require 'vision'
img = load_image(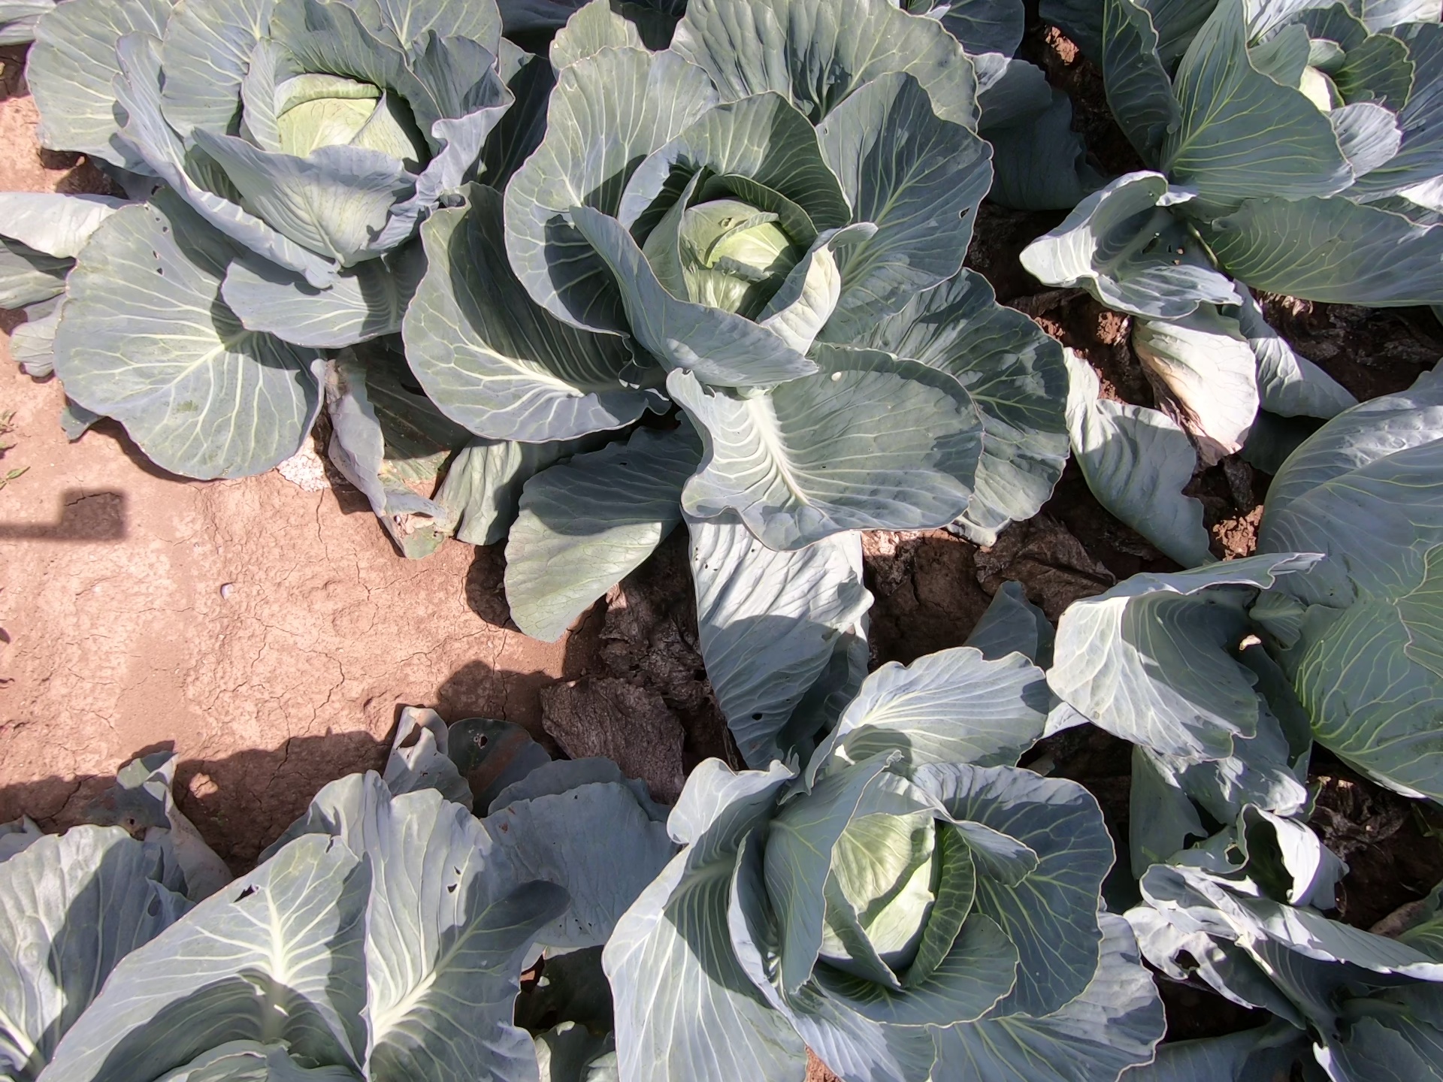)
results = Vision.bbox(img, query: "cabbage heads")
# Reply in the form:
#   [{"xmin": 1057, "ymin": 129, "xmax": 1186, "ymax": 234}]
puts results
[
  {"xmin": 247, "ymin": 74, "xmax": 424, "ymax": 260},
  {"xmin": 767, "ymin": 778, "xmax": 942, "ymax": 973},
  {"xmin": 643, "ymin": 198, "xmax": 827, "ymax": 374},
  {"xmin": 1204, "ymin": 49, "xmax": 1342, "ymax": 181}
]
